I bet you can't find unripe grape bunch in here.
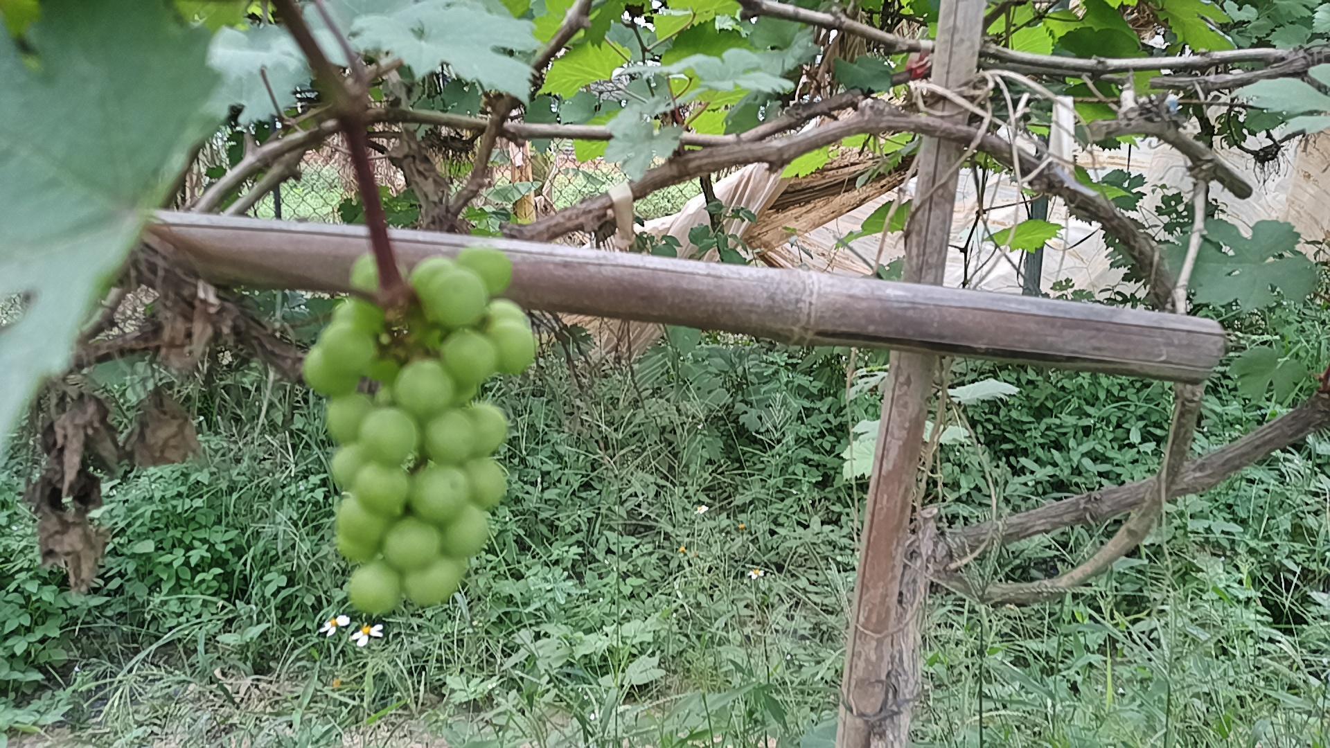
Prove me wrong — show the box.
[304,248,537,613]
